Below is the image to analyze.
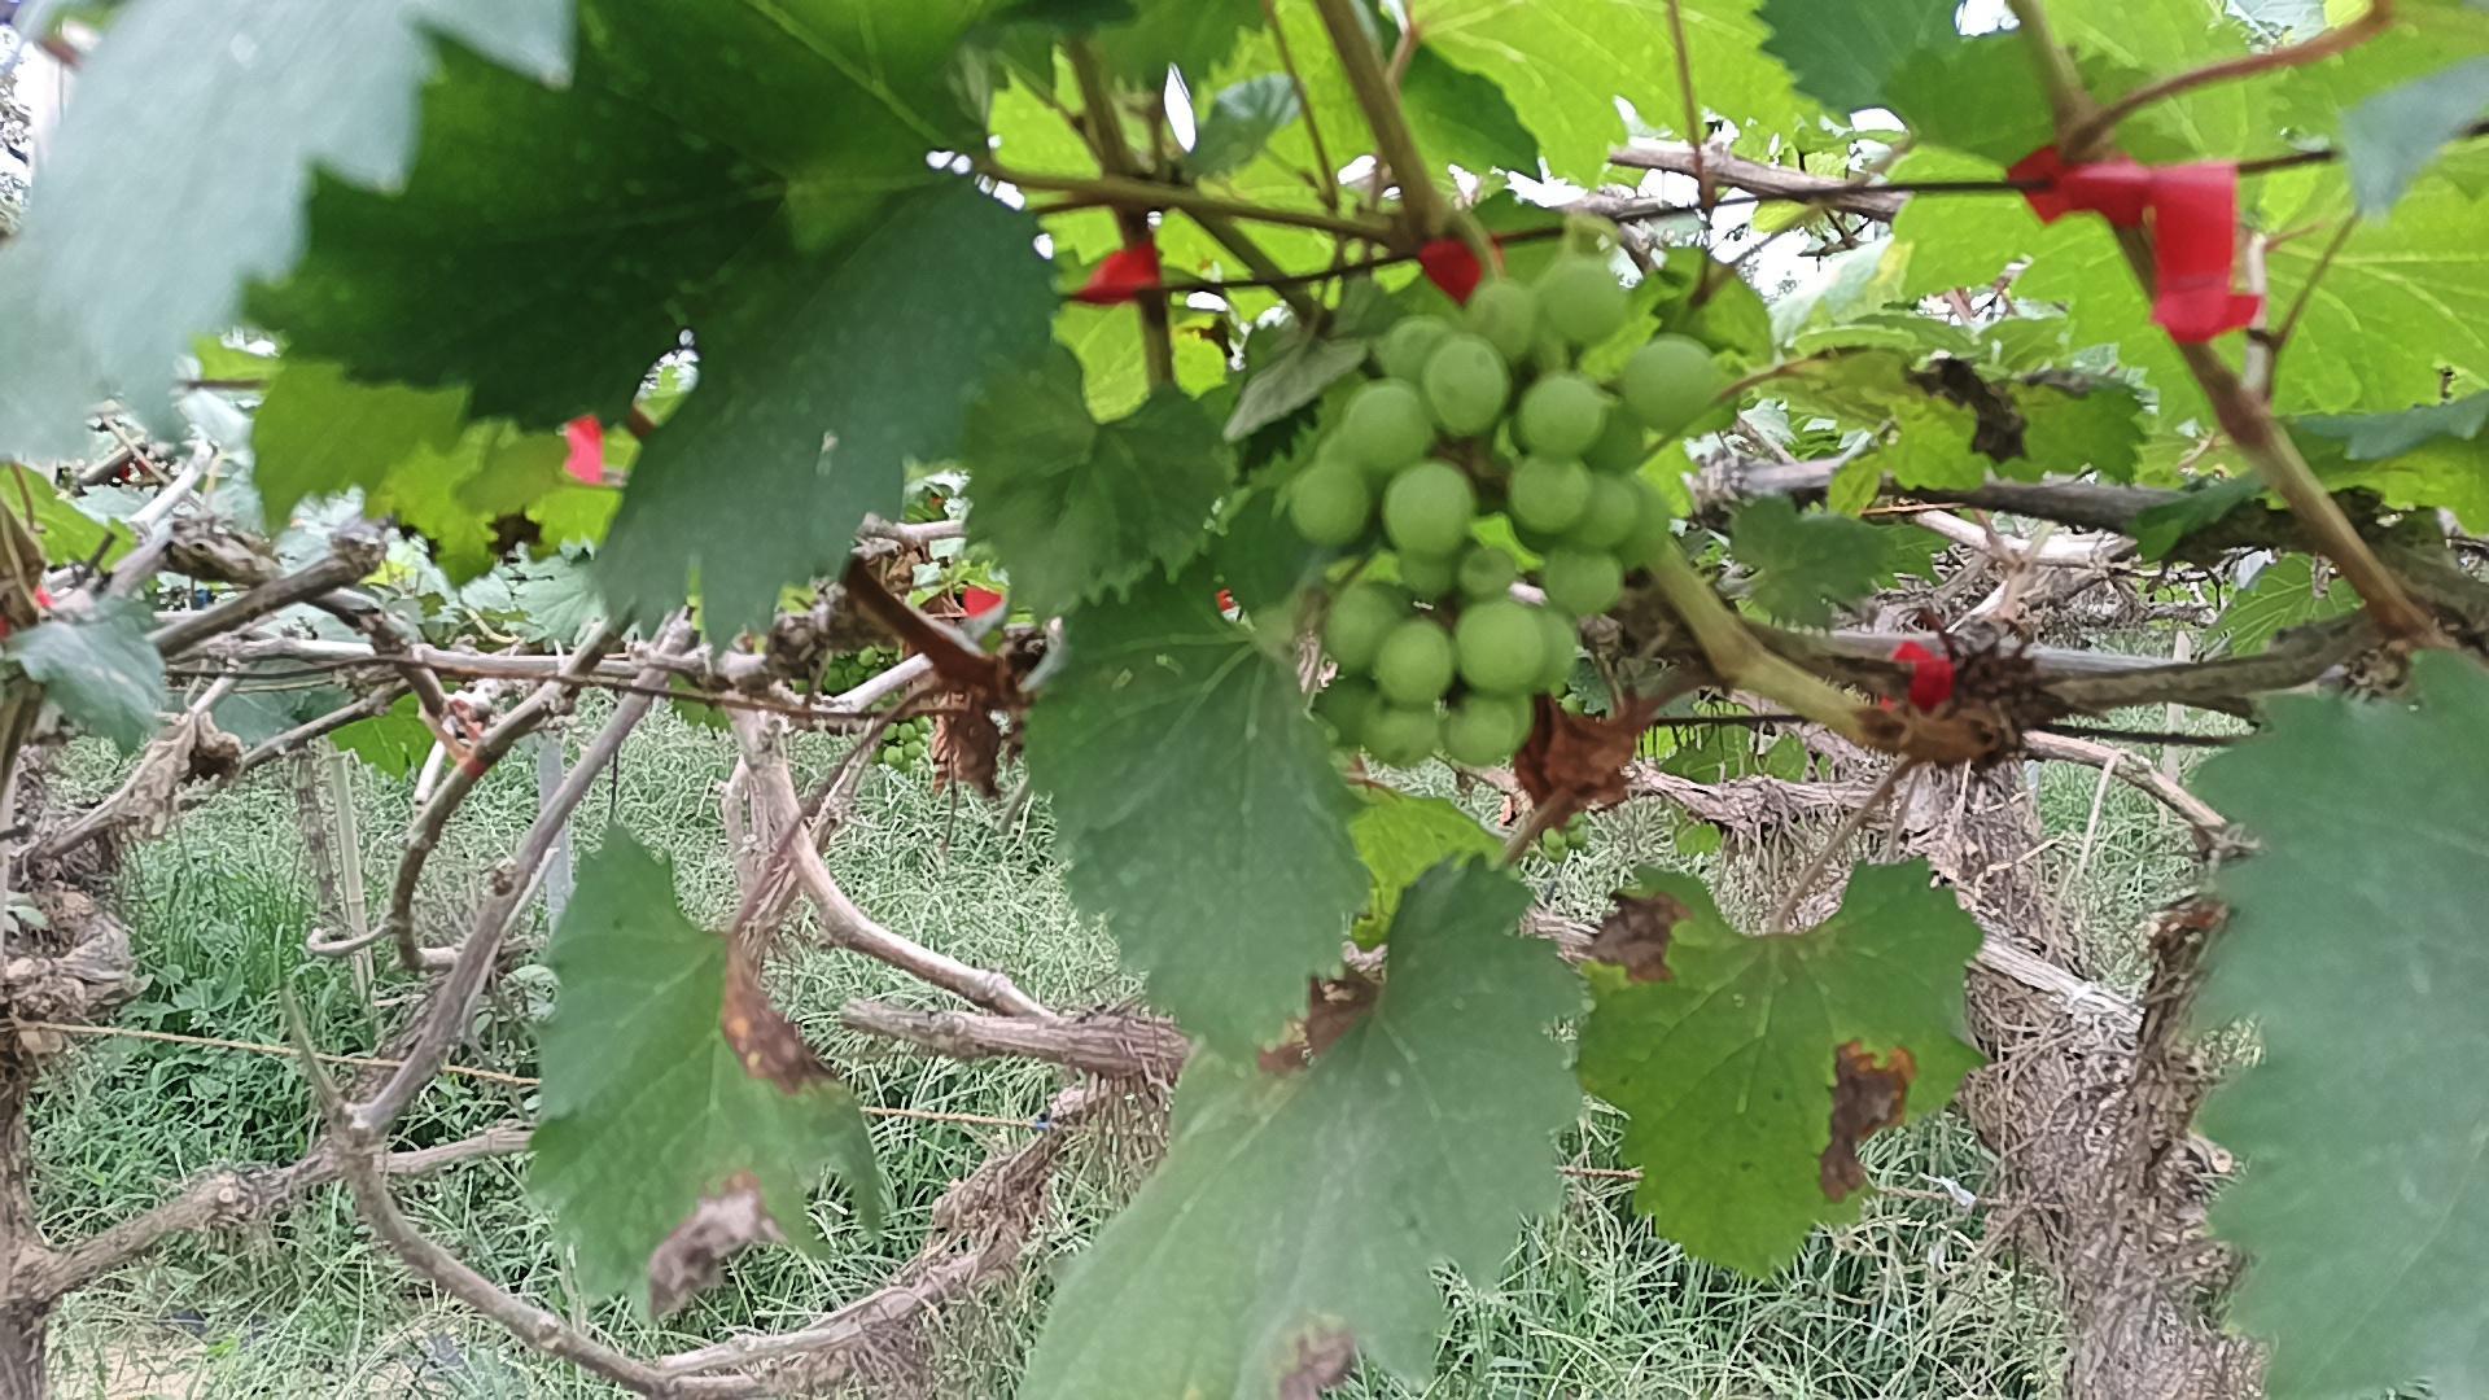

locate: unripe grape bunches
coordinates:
[1286,240,1718,766]
[782,646,932,765]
